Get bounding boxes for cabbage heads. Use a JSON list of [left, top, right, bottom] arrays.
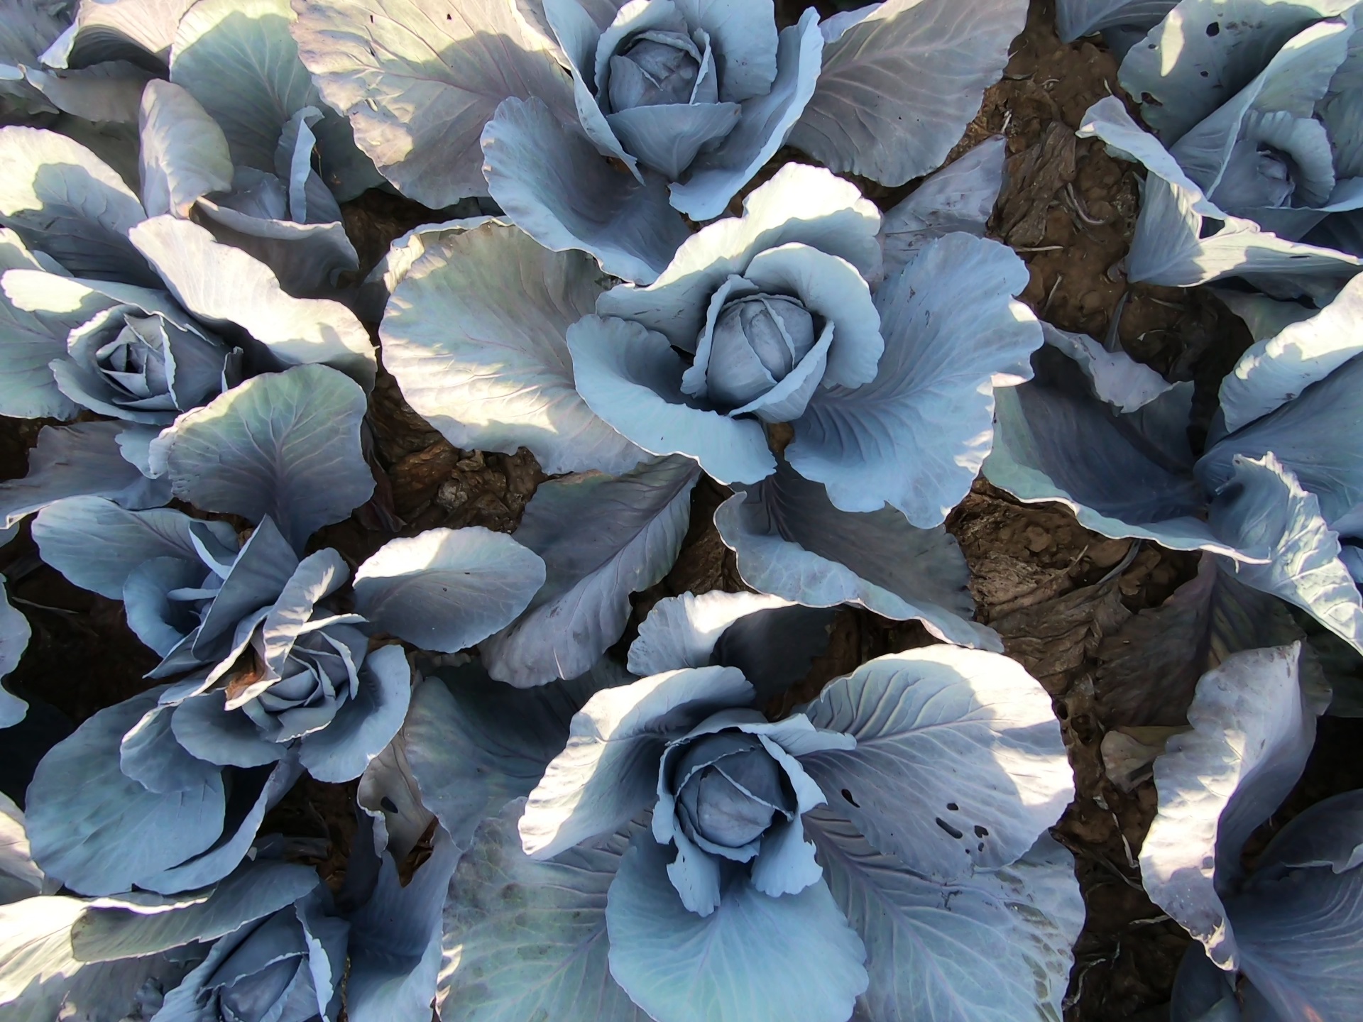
[[708, 292, 816, 407], [218, 914, 343, 1020], [611, 32, 707, 140], [116, 314, 214, 398], [677, 740, 782, 849], [256, 625, 336, 708], [1197, 153, 1287, 246]]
